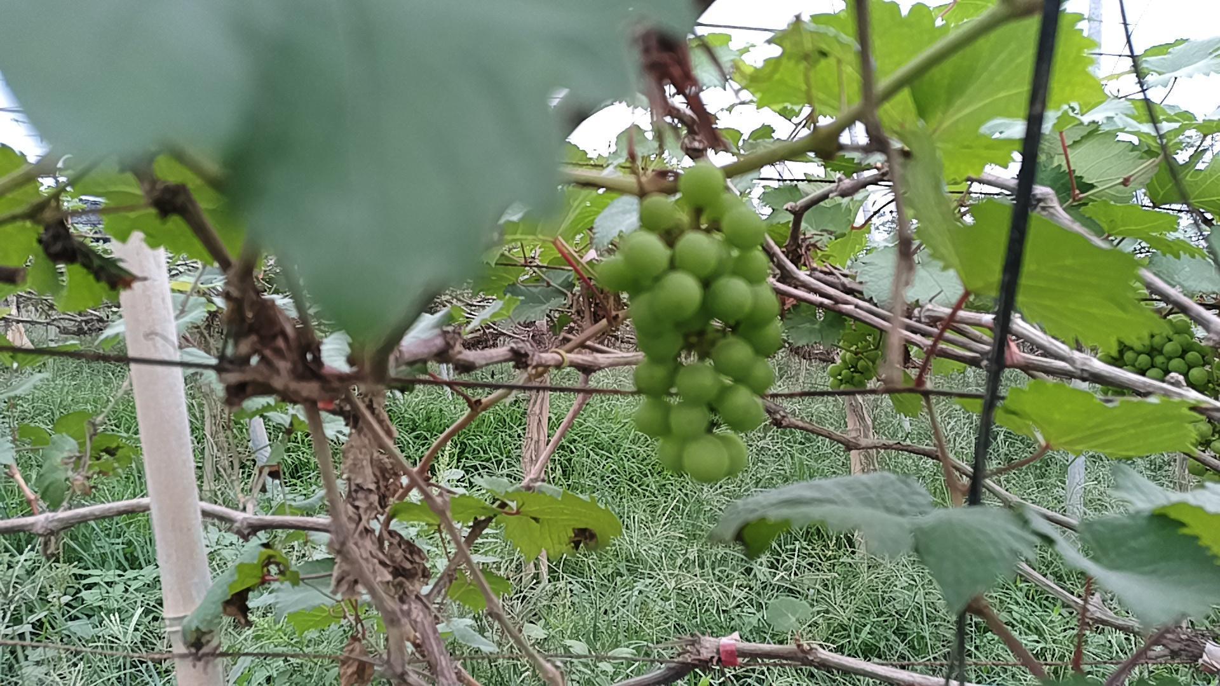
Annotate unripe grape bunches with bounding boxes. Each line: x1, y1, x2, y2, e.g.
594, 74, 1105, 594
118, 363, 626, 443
1092, 319, 1219, 458
600, 161, 780, 481
828, 322, 882, 387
